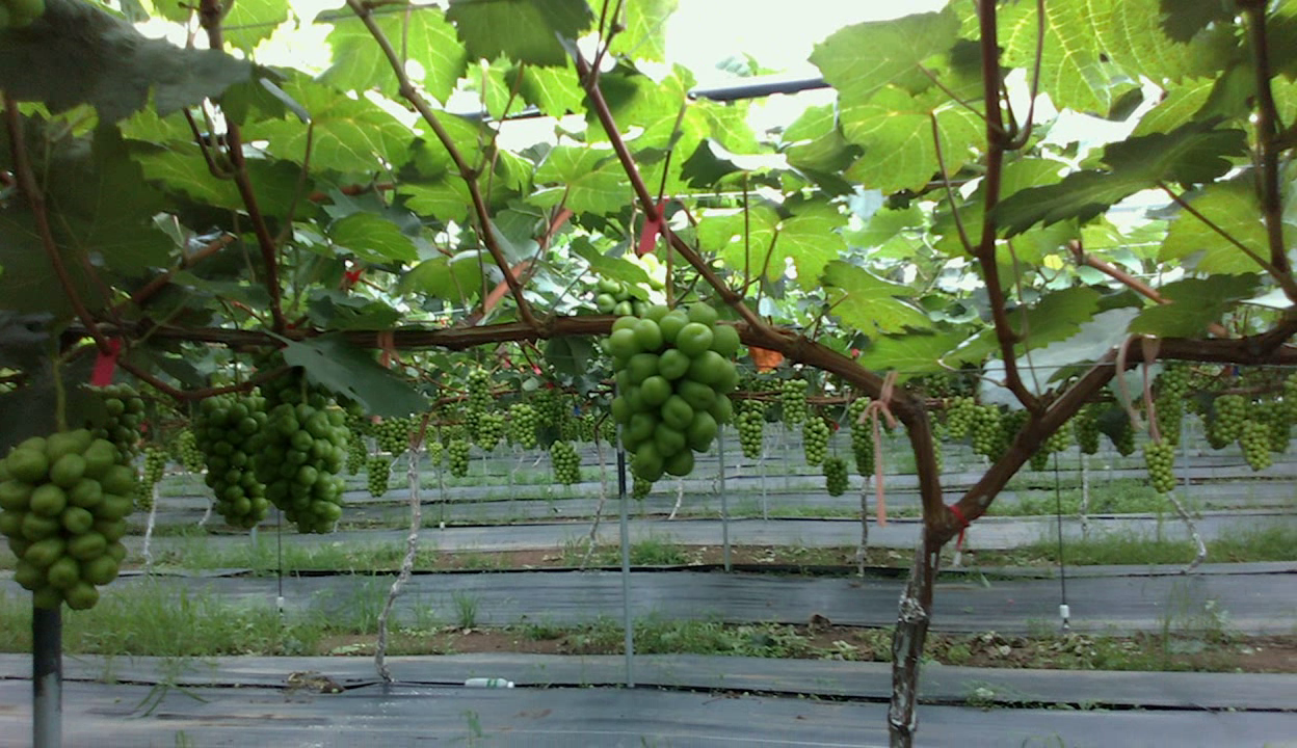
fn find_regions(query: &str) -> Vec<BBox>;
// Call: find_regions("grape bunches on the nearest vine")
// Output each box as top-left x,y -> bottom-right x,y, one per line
0,428 -> 135,612
607,302 -> 742,482
250,402 -> 352,535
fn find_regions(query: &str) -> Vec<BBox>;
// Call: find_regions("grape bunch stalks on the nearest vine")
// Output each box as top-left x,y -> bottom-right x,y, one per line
301,369 -> 310,403
51,342 -> 90,431
661,219 -> 676,311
